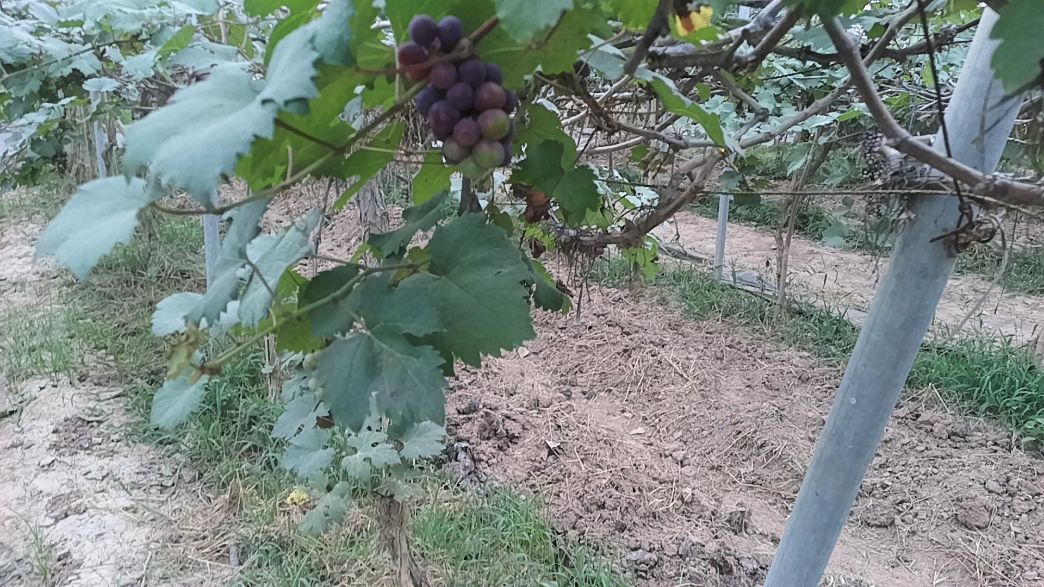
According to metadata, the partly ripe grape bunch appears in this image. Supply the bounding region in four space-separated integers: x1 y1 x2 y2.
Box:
396 15 519 180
